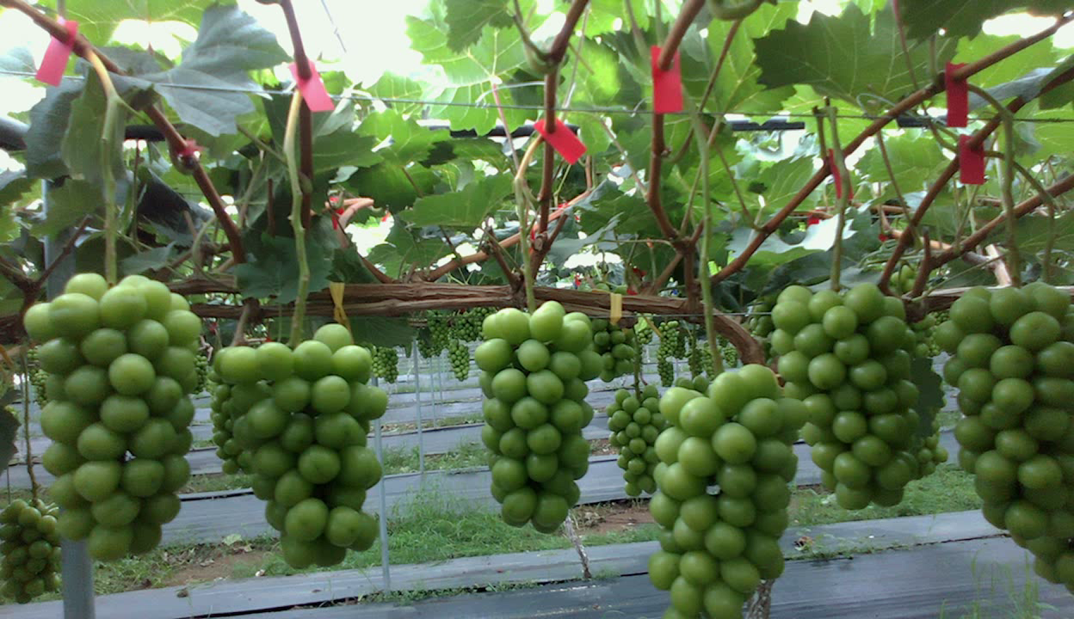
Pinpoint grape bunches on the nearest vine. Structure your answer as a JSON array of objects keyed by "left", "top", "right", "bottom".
[
  {"left": 213, "top": 322, "right": 390, "bottom": 567},
  {"left": 771, "top": 281, "right": 921, "bottom": 512},
  {"left": 24, "top": 272, "right": 201, "bottom": 561},
  {"left": 649, "top": 364, "right": 806, "bottom": 616},
  {"left": 935, "top": 282, "right": 1073, "bottom": 596},
  {"left": 474, "top": 301, "right": 603, "bottom": 535}
]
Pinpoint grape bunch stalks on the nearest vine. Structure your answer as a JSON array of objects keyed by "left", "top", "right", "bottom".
[
  {"left": 829, "top": 113, "right": 850, "bottom": 291},
  {"left": 968, "top": 83, "right": 1021, "bottom": 285},
  {"left": 283, "top": 91, "right": 310, "bottom": 349},
  {"left": 682, "top": 84, "right": 724, "bottom": 377},
  {"left": 515, "top": 134, "right": 544, "bottom": 310},
  {"left": 81, "top": 49, "right": 118, "bottom": 285}
]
